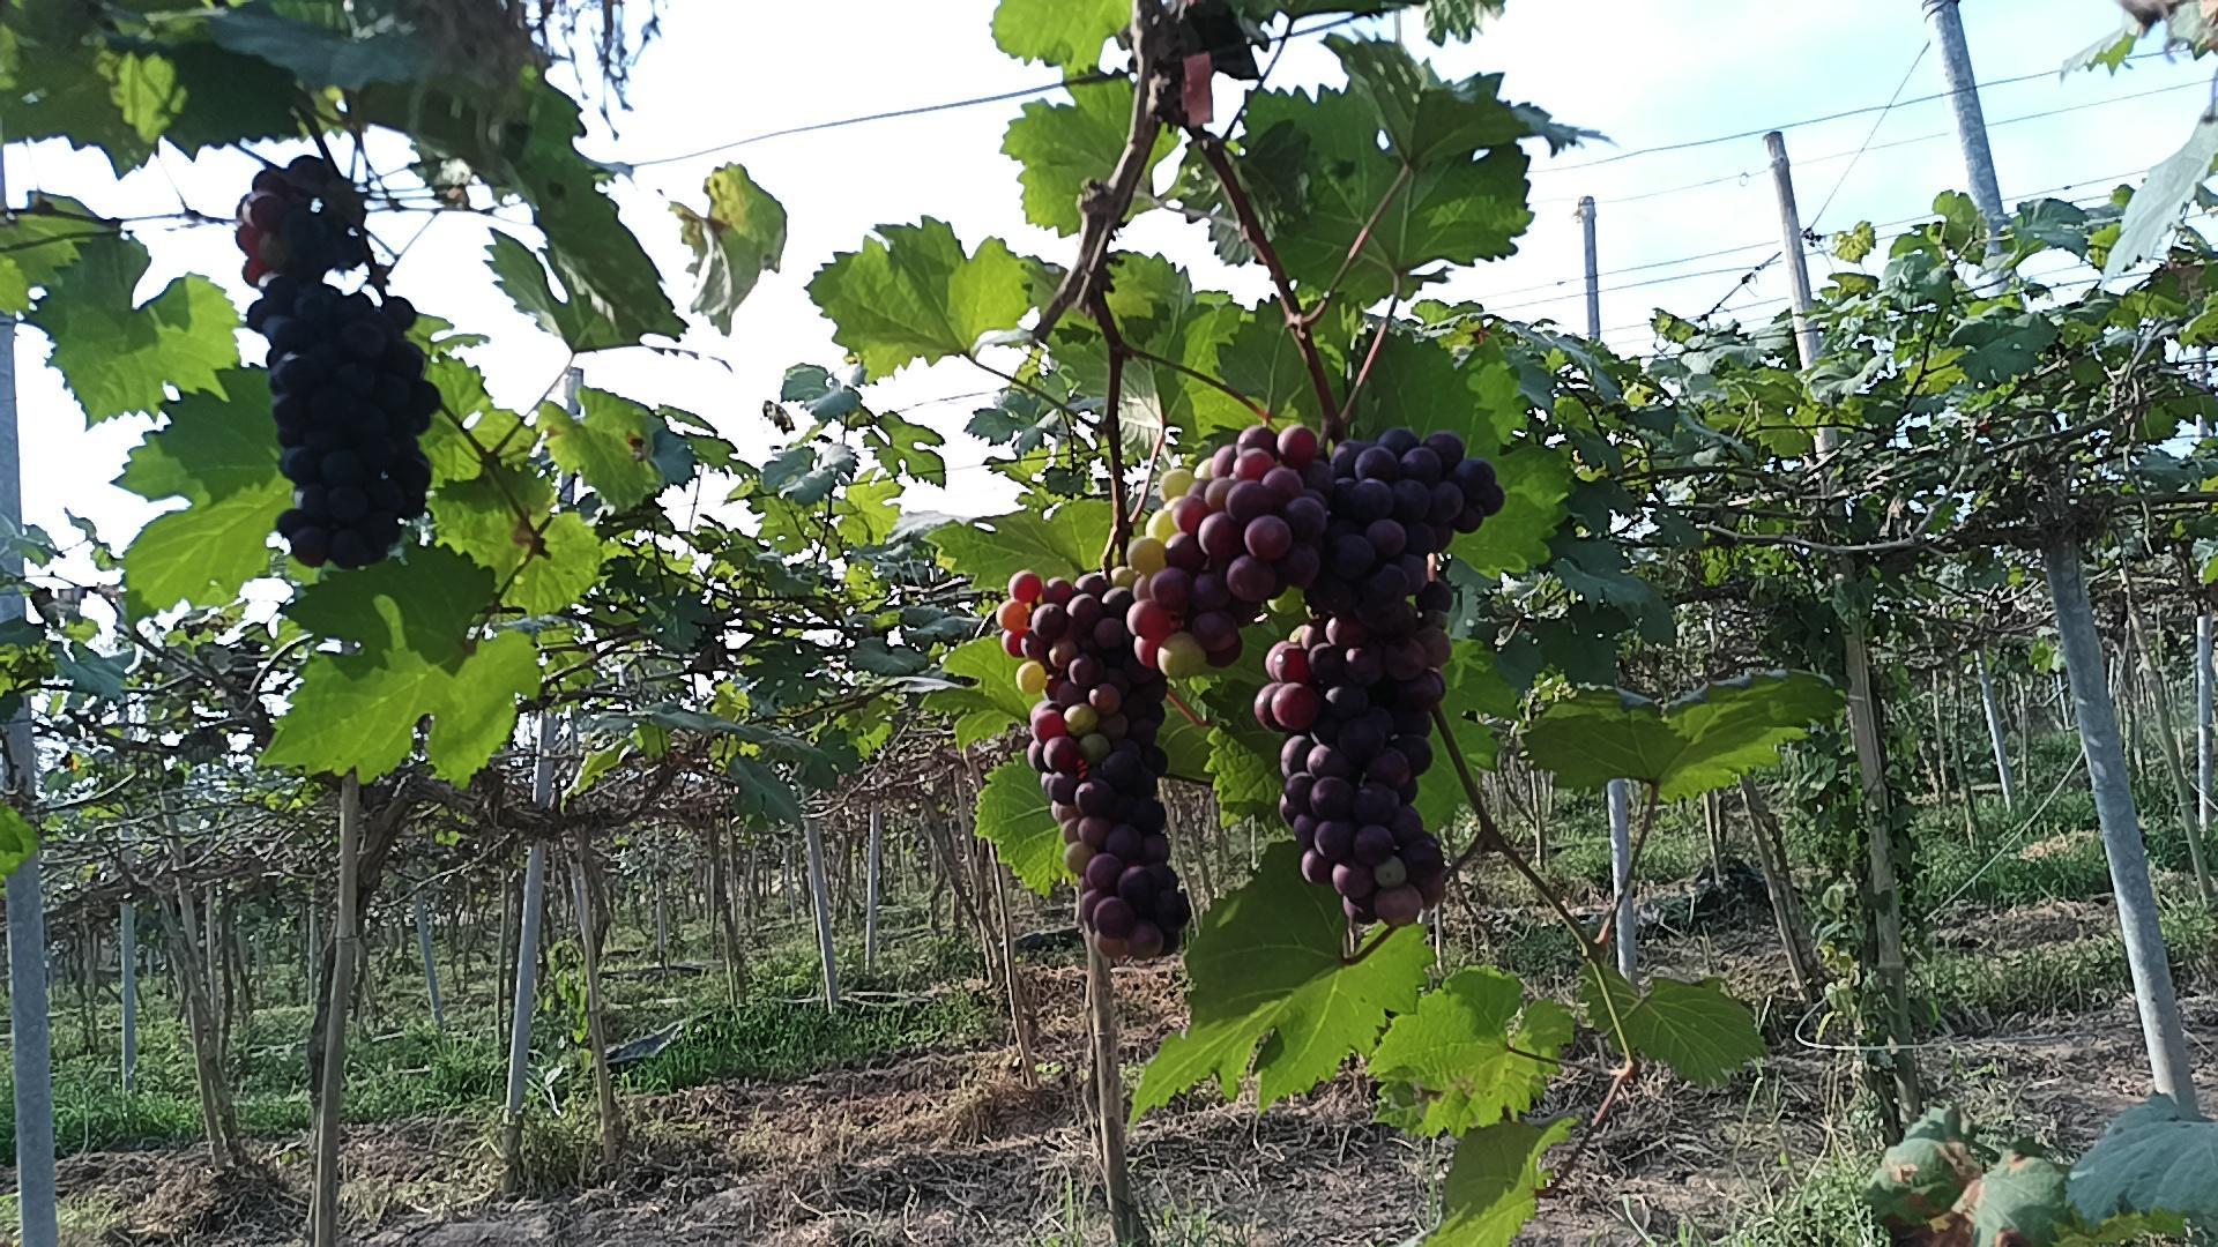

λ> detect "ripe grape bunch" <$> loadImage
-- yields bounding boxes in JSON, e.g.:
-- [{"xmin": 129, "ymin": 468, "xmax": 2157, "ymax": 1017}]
[{"xmin": 236, "ymin": 155, "xmax": 441, "ymax": 568}]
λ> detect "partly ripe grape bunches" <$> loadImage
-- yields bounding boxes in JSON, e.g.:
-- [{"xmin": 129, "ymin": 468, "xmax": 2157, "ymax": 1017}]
[
  {"xmin": 997, "ymin": 570, "xmax": 1190, "ymax": 959},
  {"xmin": 1255, "ymin": 431, "xmax": 1505, "ymax": 927},
  {"xmin": 1110, "ymin": 426, "xmax": 1327, "ymax": 679}
]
